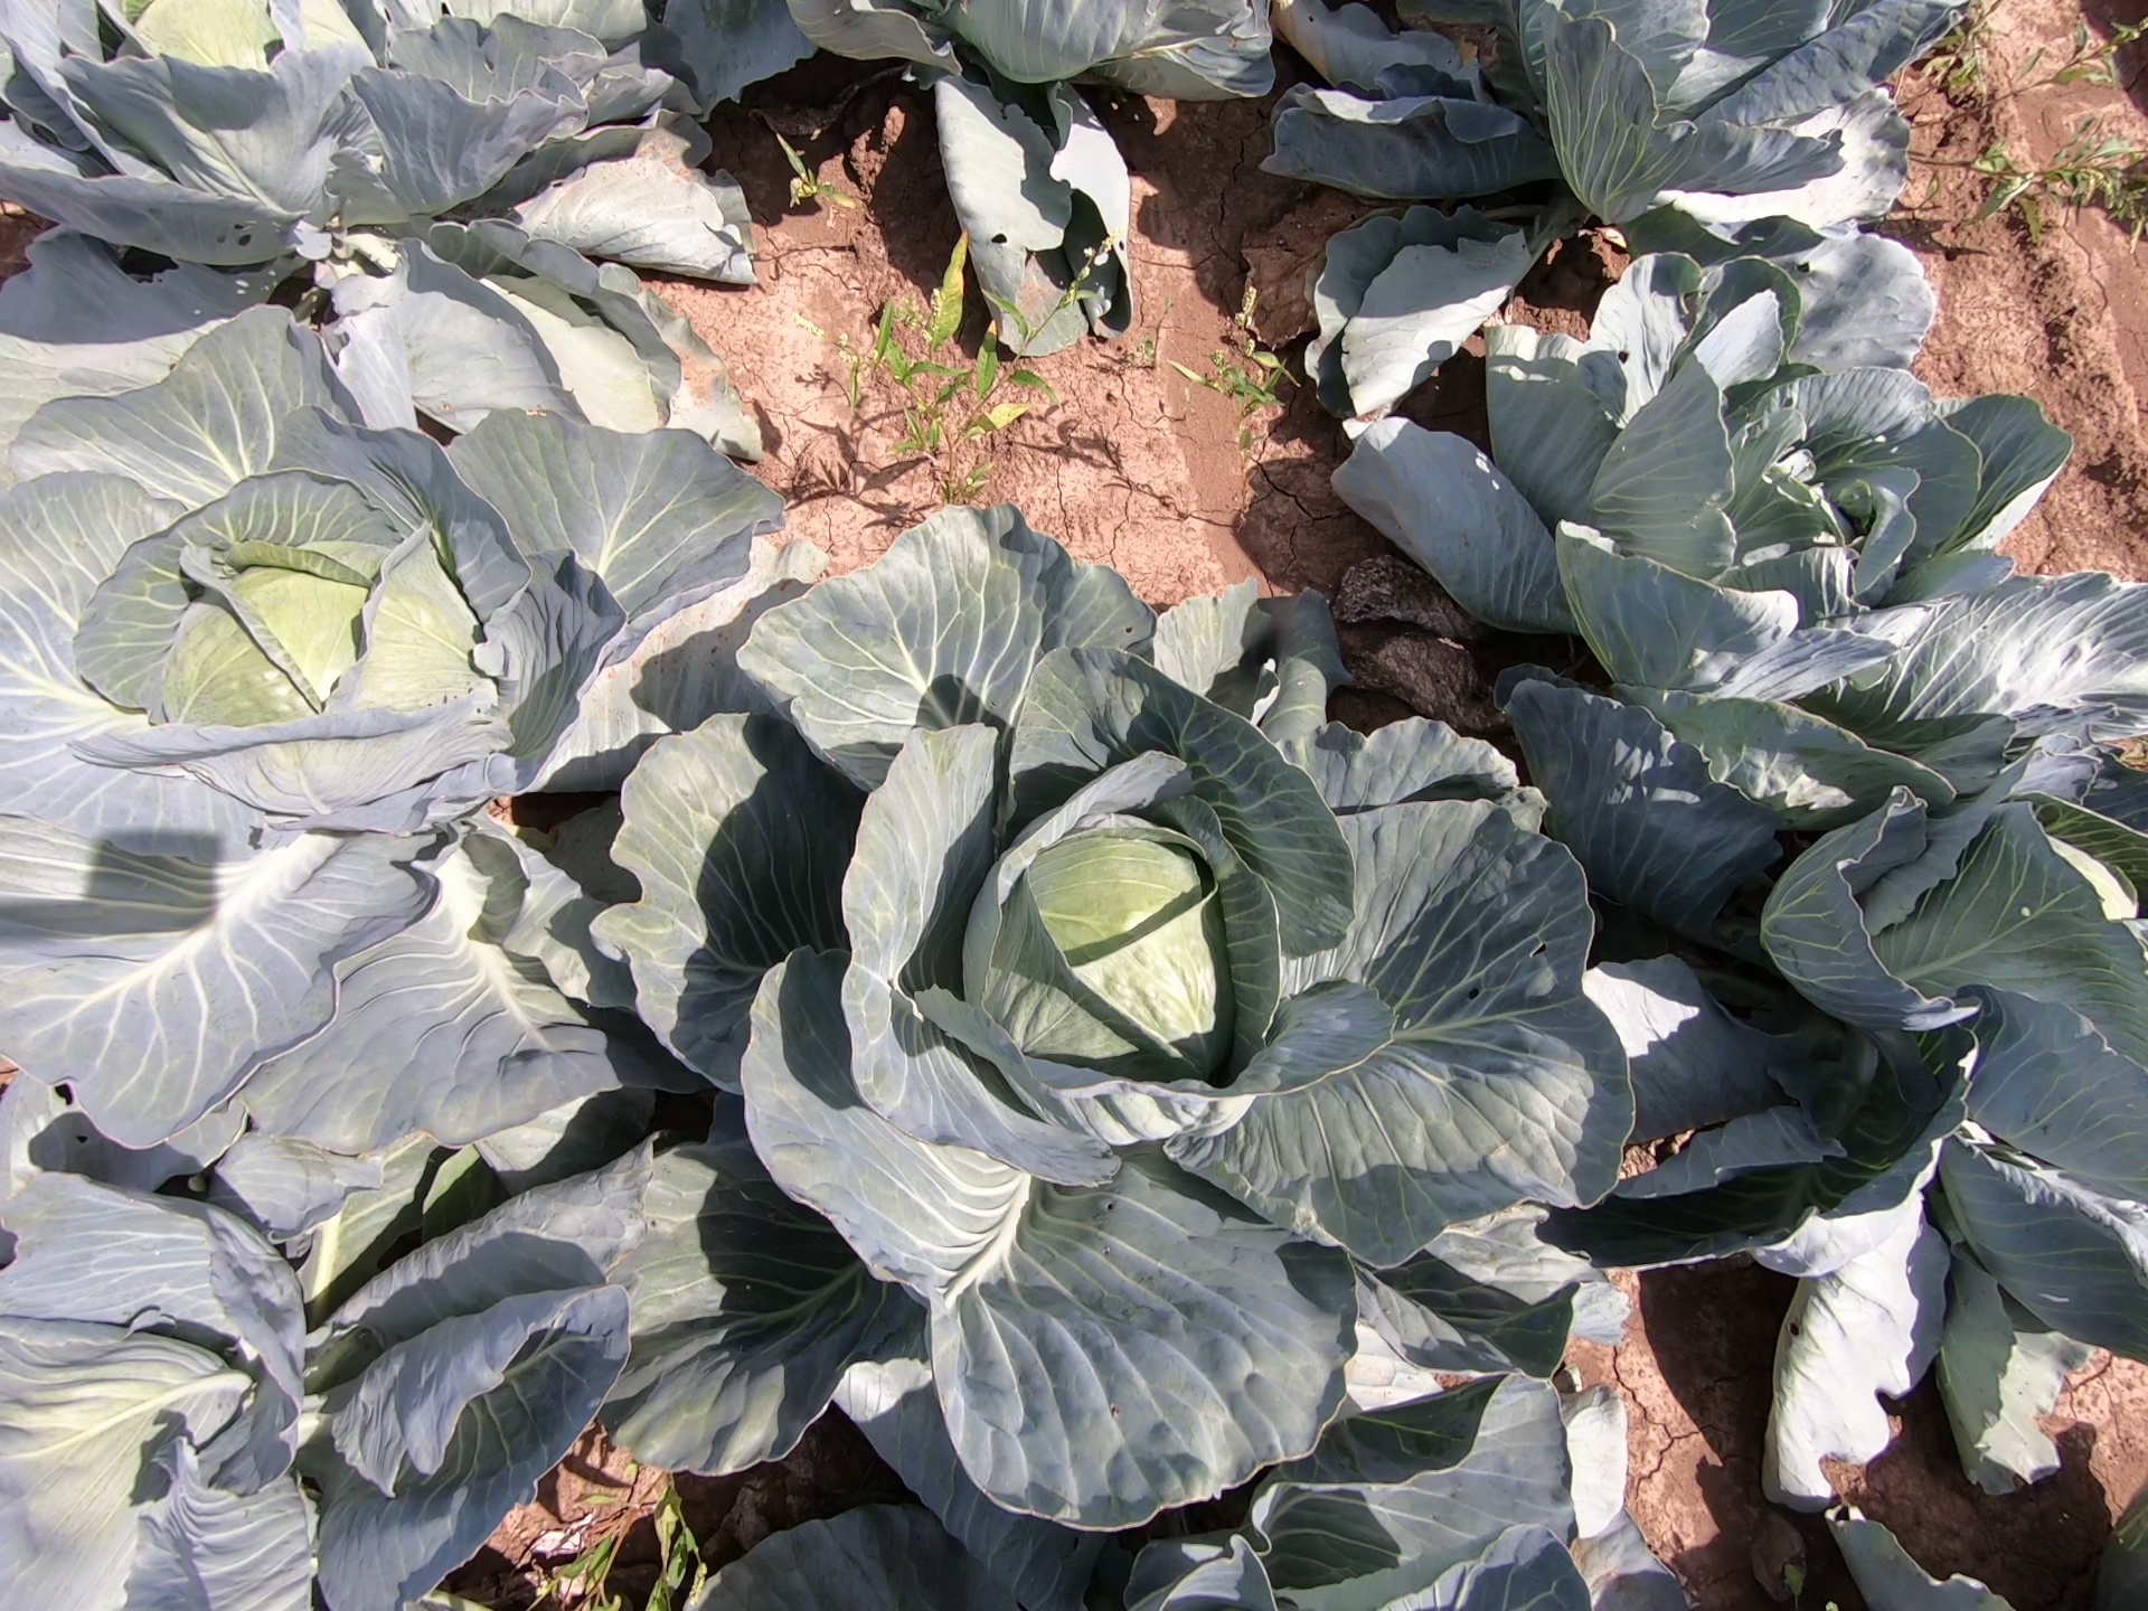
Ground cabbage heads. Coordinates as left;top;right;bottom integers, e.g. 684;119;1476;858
115;1;375;215
1947;820;2142;997
163;537;486;809
1693;471;1857;630
969;812;1246;1103
1;1341;223;1610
